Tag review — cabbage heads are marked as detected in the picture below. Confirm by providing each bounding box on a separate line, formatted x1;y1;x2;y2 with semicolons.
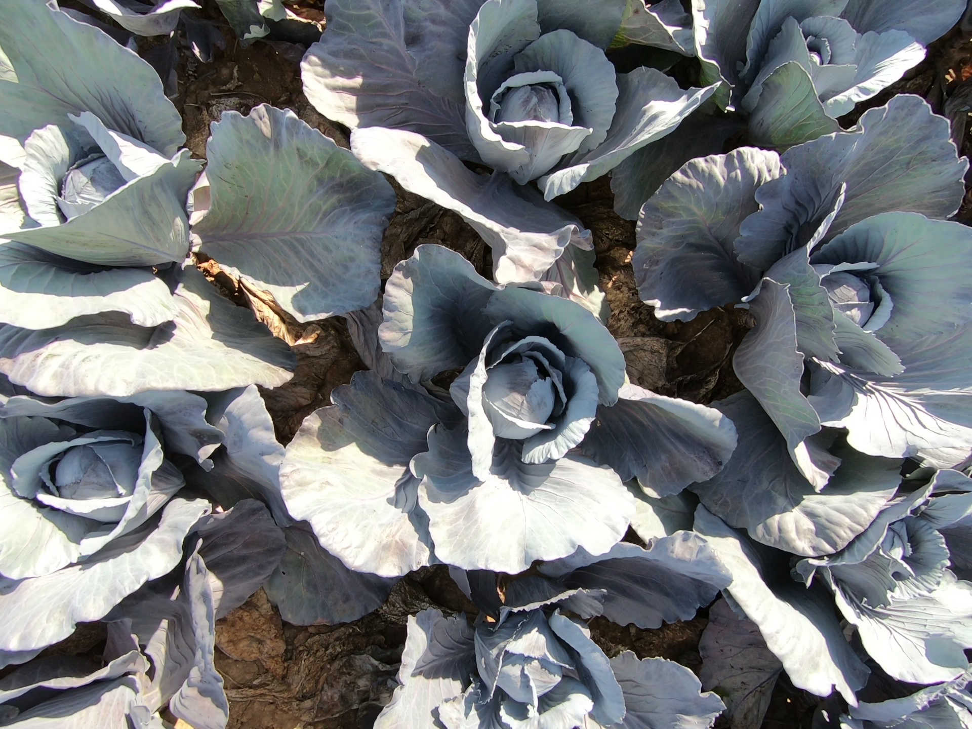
500;79;561;157
846;520;908;576
749;48;826;114
56;437;159;519
784;266;873;340
889;677;971;726
62;153;164;243
478;363;553;439
495;624;563;703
